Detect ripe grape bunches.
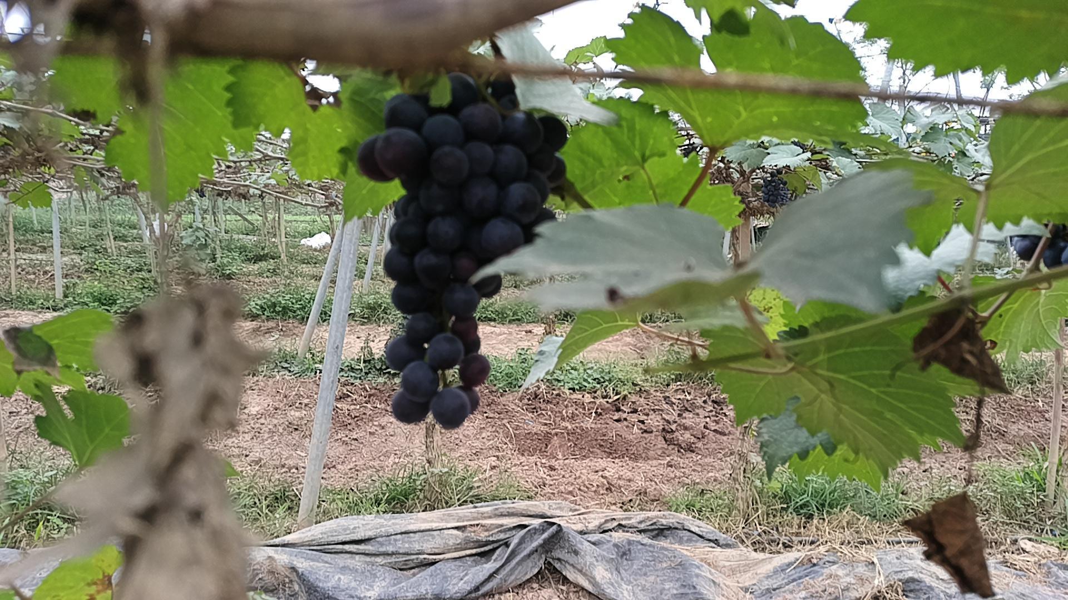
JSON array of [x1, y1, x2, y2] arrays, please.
[[761, 173, 790, 208], [1009, 221, 1067, 268], [358, 74, 566, 428]]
